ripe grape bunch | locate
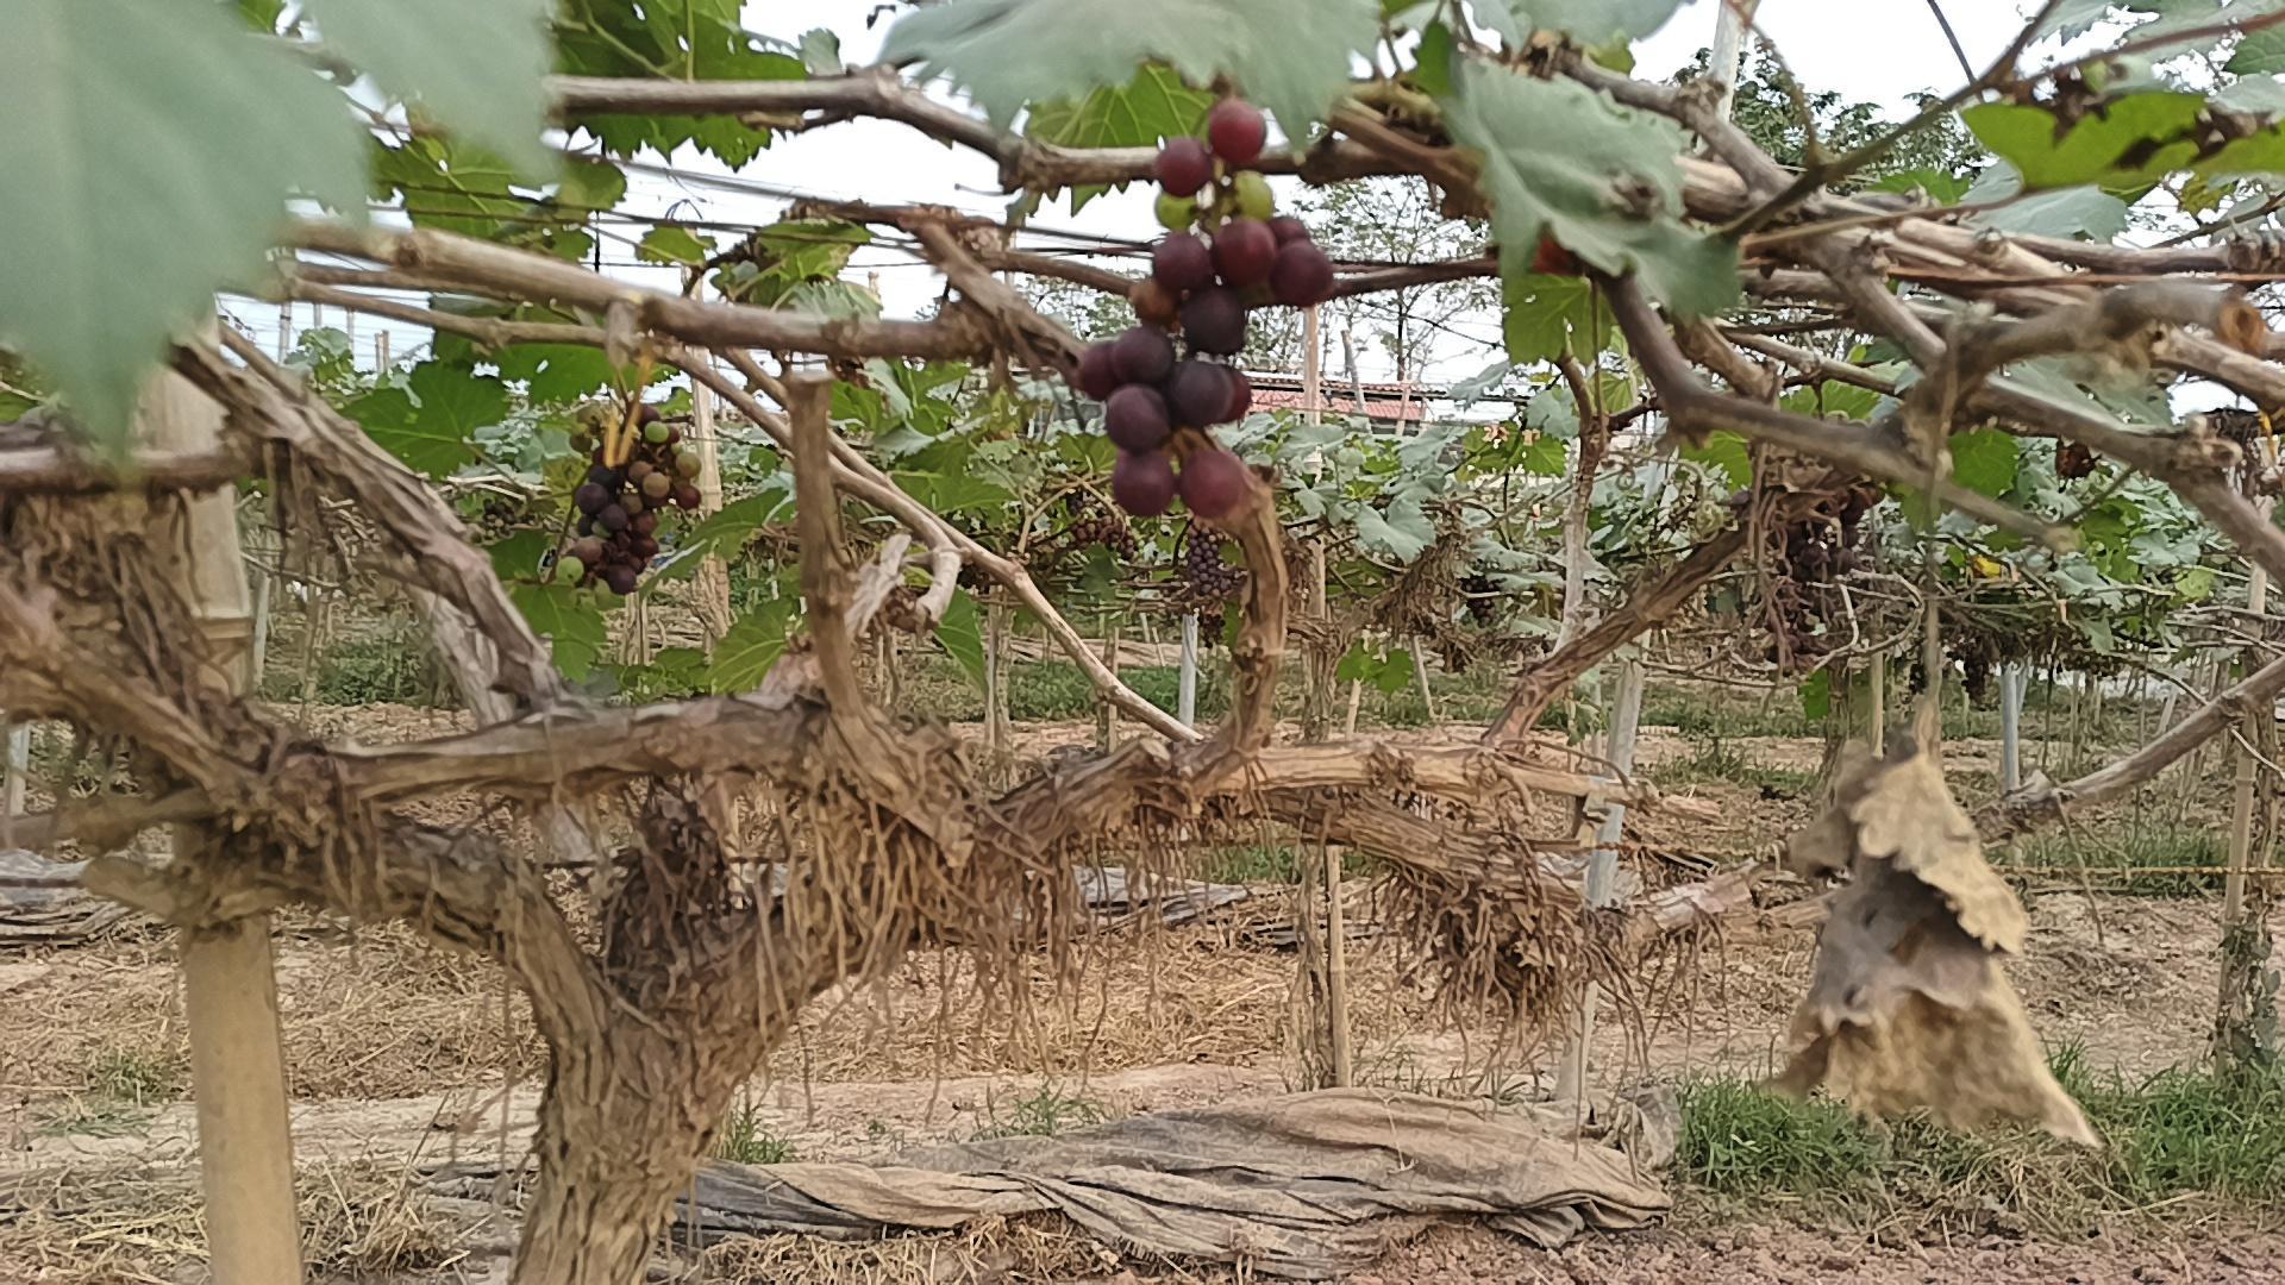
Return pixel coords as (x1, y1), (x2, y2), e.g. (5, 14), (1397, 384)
(1065, 484), (1085, 516)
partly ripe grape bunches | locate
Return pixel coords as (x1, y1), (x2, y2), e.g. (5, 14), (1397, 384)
(1458, 573), (1500, 628)
(1064, 514), (1141, 563)
(1179, 520), (1246, 607)
(569, 401), (703, 594)
(1077, 99), (1334, 516)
